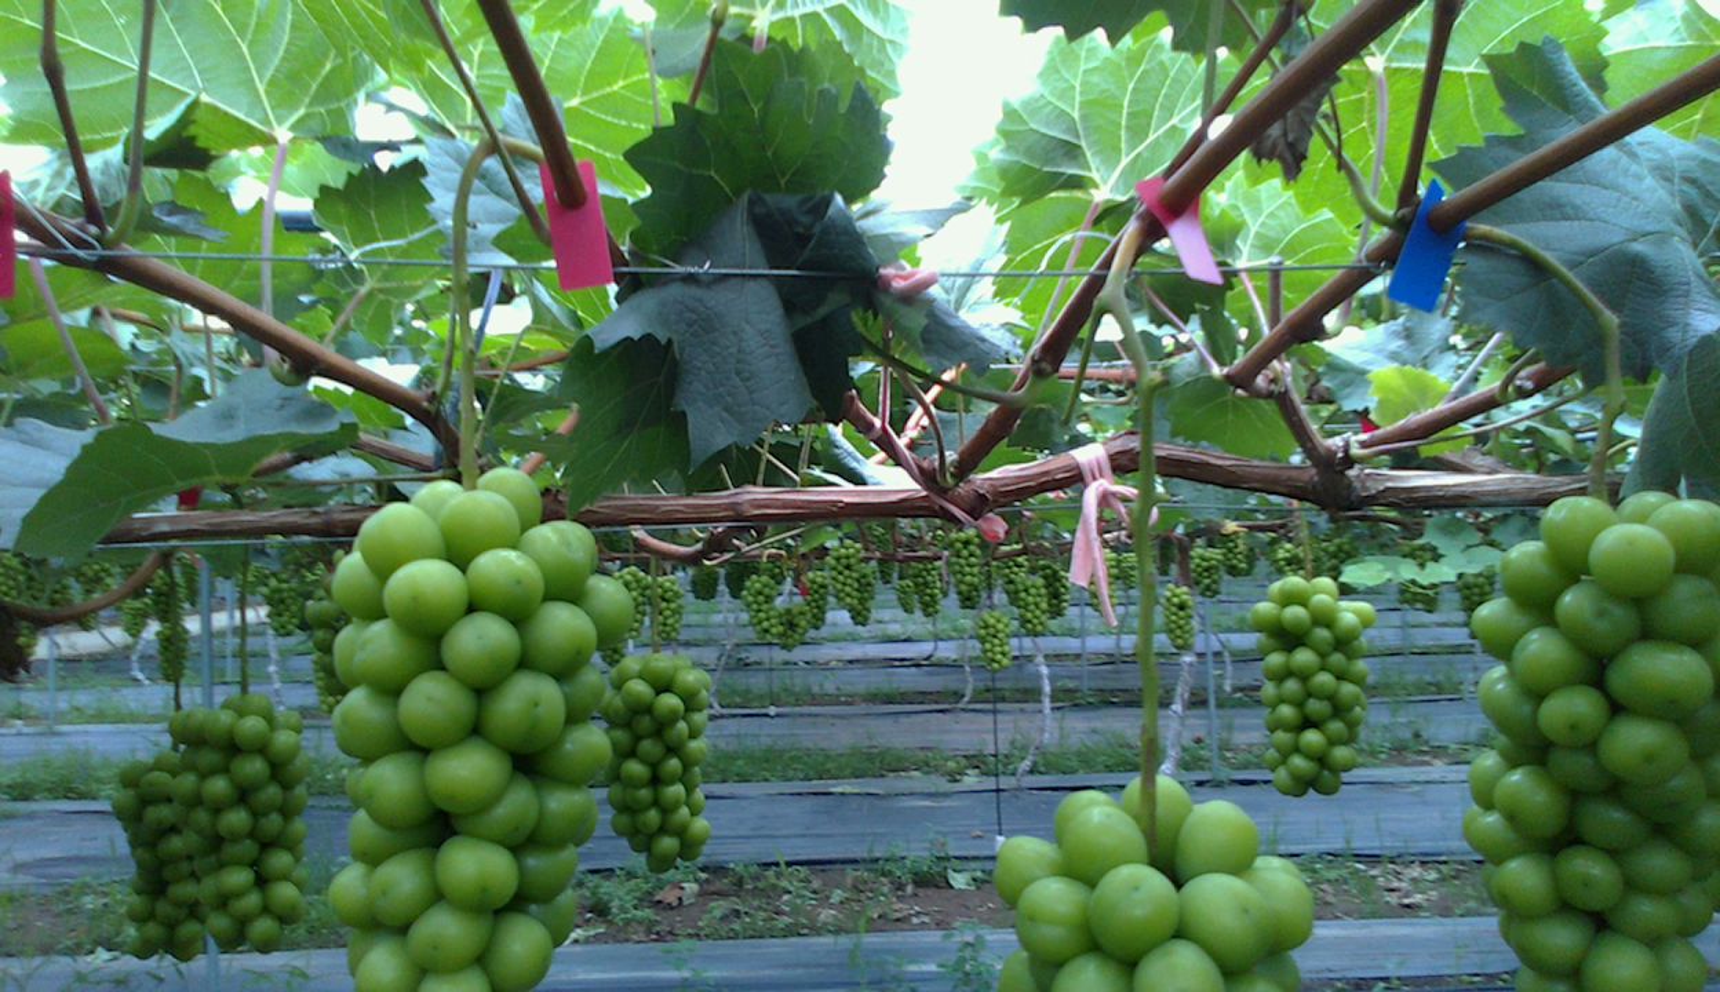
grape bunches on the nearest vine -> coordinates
[328,466,635,991]
[991,774,1313,991]
[1461,492,1719,991]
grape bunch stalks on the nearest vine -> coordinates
[1105,223,1158,868]
[1464,222,1622,504]
[453,136,547,489]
